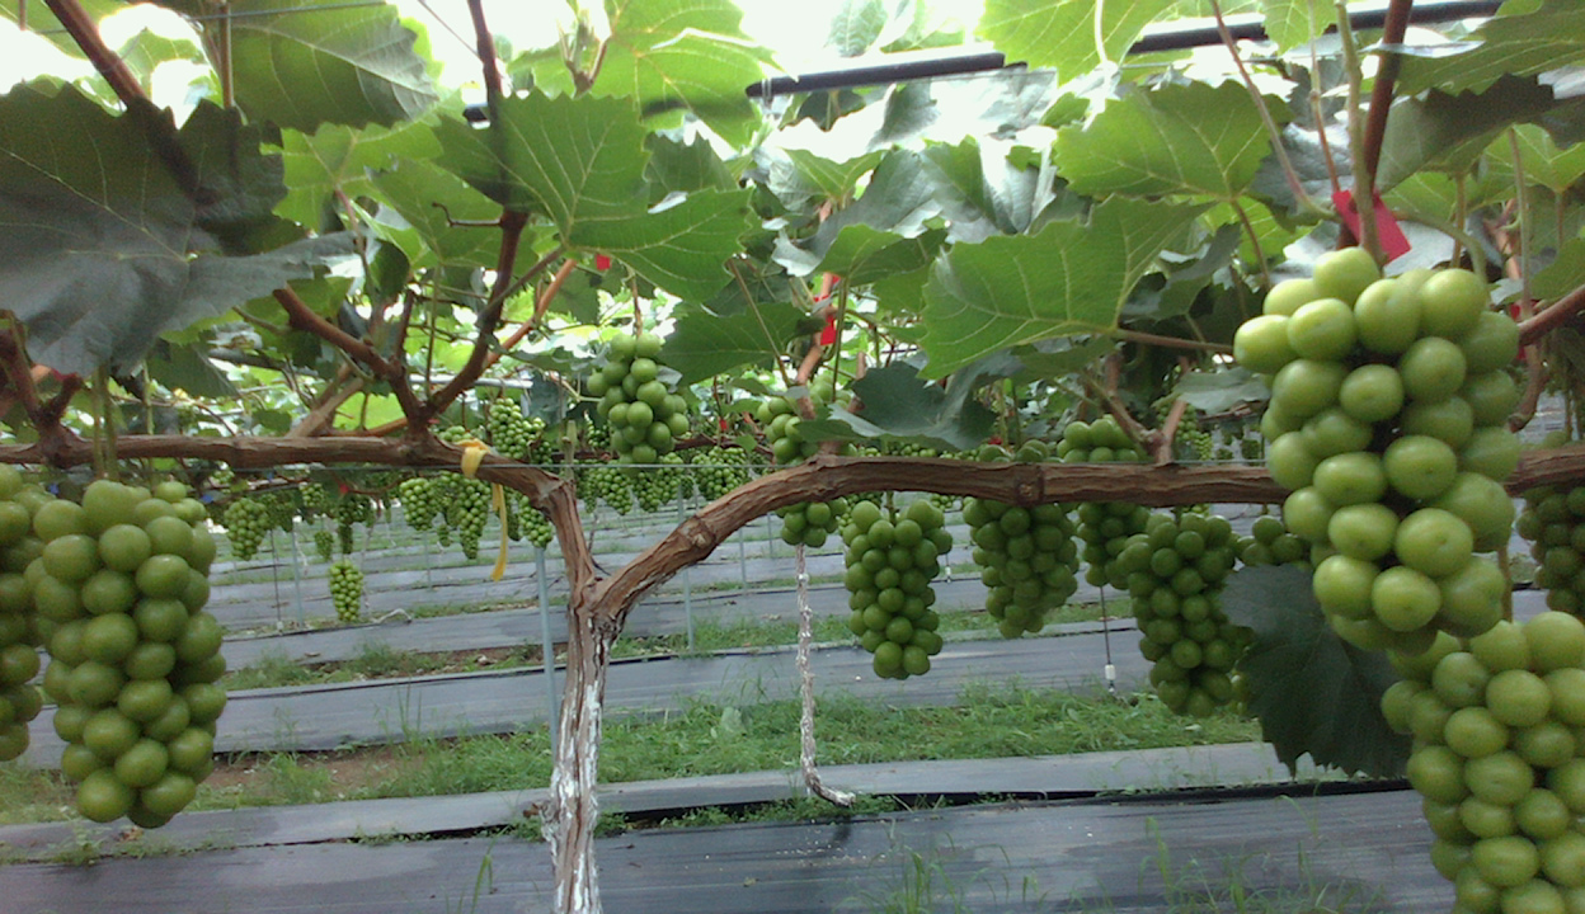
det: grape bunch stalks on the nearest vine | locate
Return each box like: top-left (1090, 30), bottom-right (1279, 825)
top-left (1335, 1), bottom-right (1386, 269)
top-left (98, 368), bottom-right (118, 479)
top-left (1499, 548), bottom-right (1514, 621)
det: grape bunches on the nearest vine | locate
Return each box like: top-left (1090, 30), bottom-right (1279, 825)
top-left (1381, 613), bottom-right (1584, 913)
top-left (23, 480), bottom-right (227, 830)
top-left (1233, 250), bottom-right (1519, 655)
